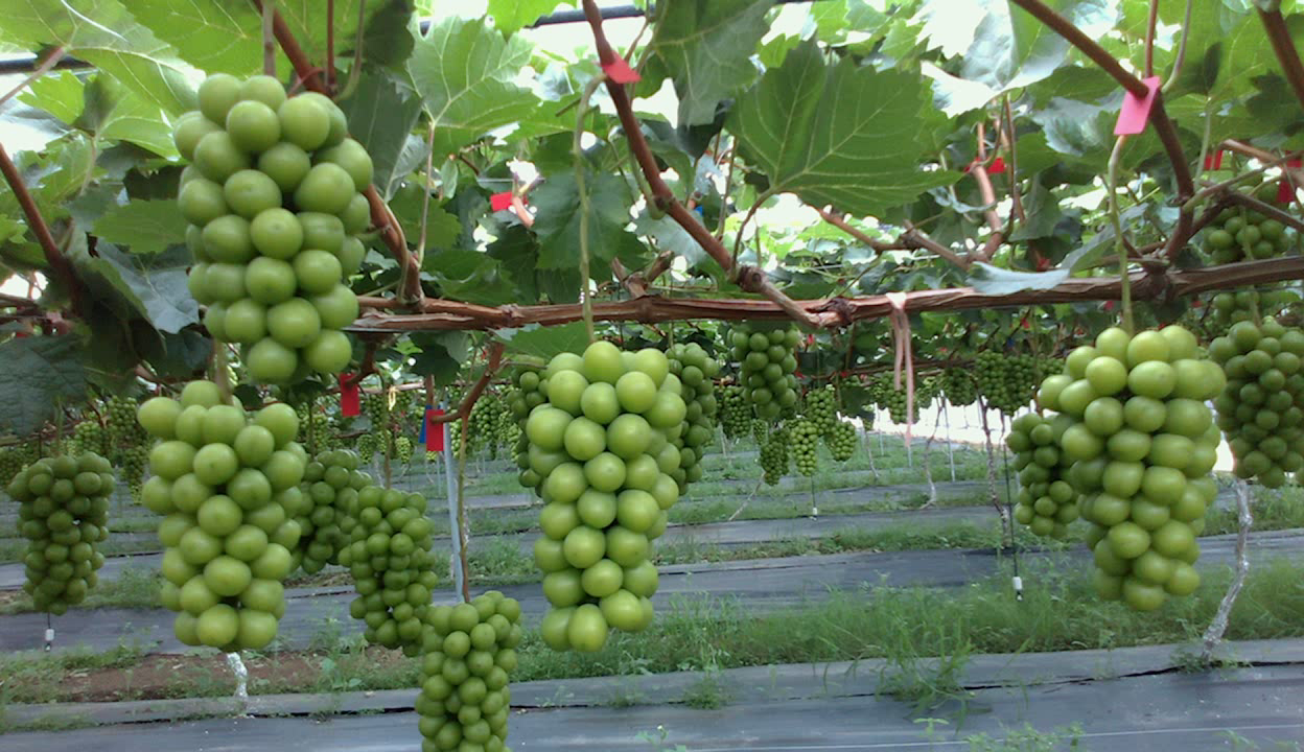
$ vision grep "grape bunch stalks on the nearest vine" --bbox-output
[1108,135,1134,338]
[575,72,608,344]
[262,0,276,74]
[215,344,232,405]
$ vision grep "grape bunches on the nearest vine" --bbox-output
[1039,325,1226,610]
[173,72,373,385]
[137,379,307,651]
[526,340,688,654]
